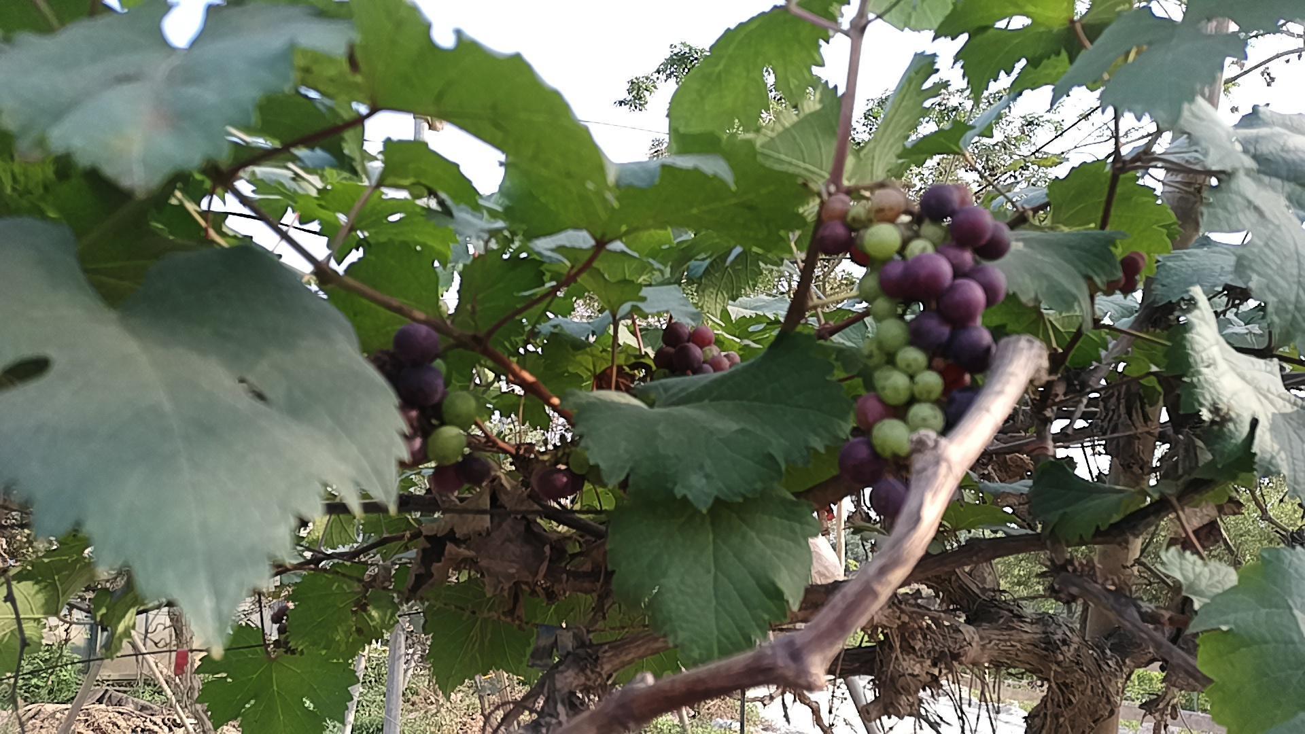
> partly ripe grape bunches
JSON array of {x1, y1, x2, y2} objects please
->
[
  {"x1": 371, "y1": 323, "x2": 478, "y2": 465},
  {"x1": 654, "y1": 320, "x2": 740, "y2": 374},
  {"x1": 815, "y1": 182, "x2": 1011, "y2": 526}
]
